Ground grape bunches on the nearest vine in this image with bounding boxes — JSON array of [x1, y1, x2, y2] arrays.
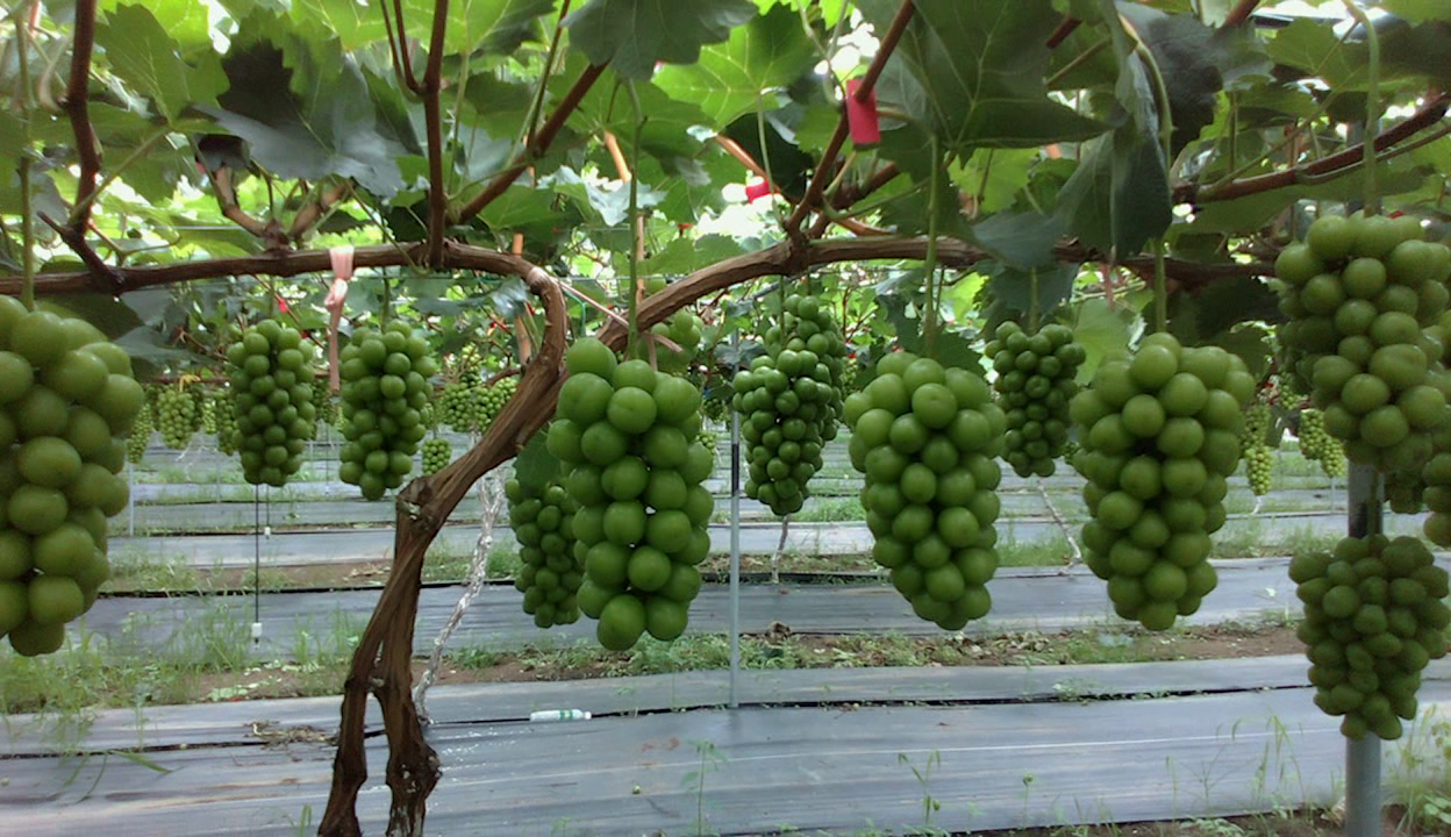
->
[[0, 294, 144, 657], [545, 337, 715, 651], [1274, 210, 1450, 472], [1068, 332, 1257, 631], [1287, 534, 1450, 741], [842, 351, 1007, 631]]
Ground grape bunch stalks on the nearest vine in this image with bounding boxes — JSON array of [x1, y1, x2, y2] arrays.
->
[[1153, 237, 1167, 331], [1366, 467, 1379, 557], [15, 158, 35, 312], [1342, 1, 1379, 217], [878, 107, 938, 359], [622, 78, 646, 359]]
